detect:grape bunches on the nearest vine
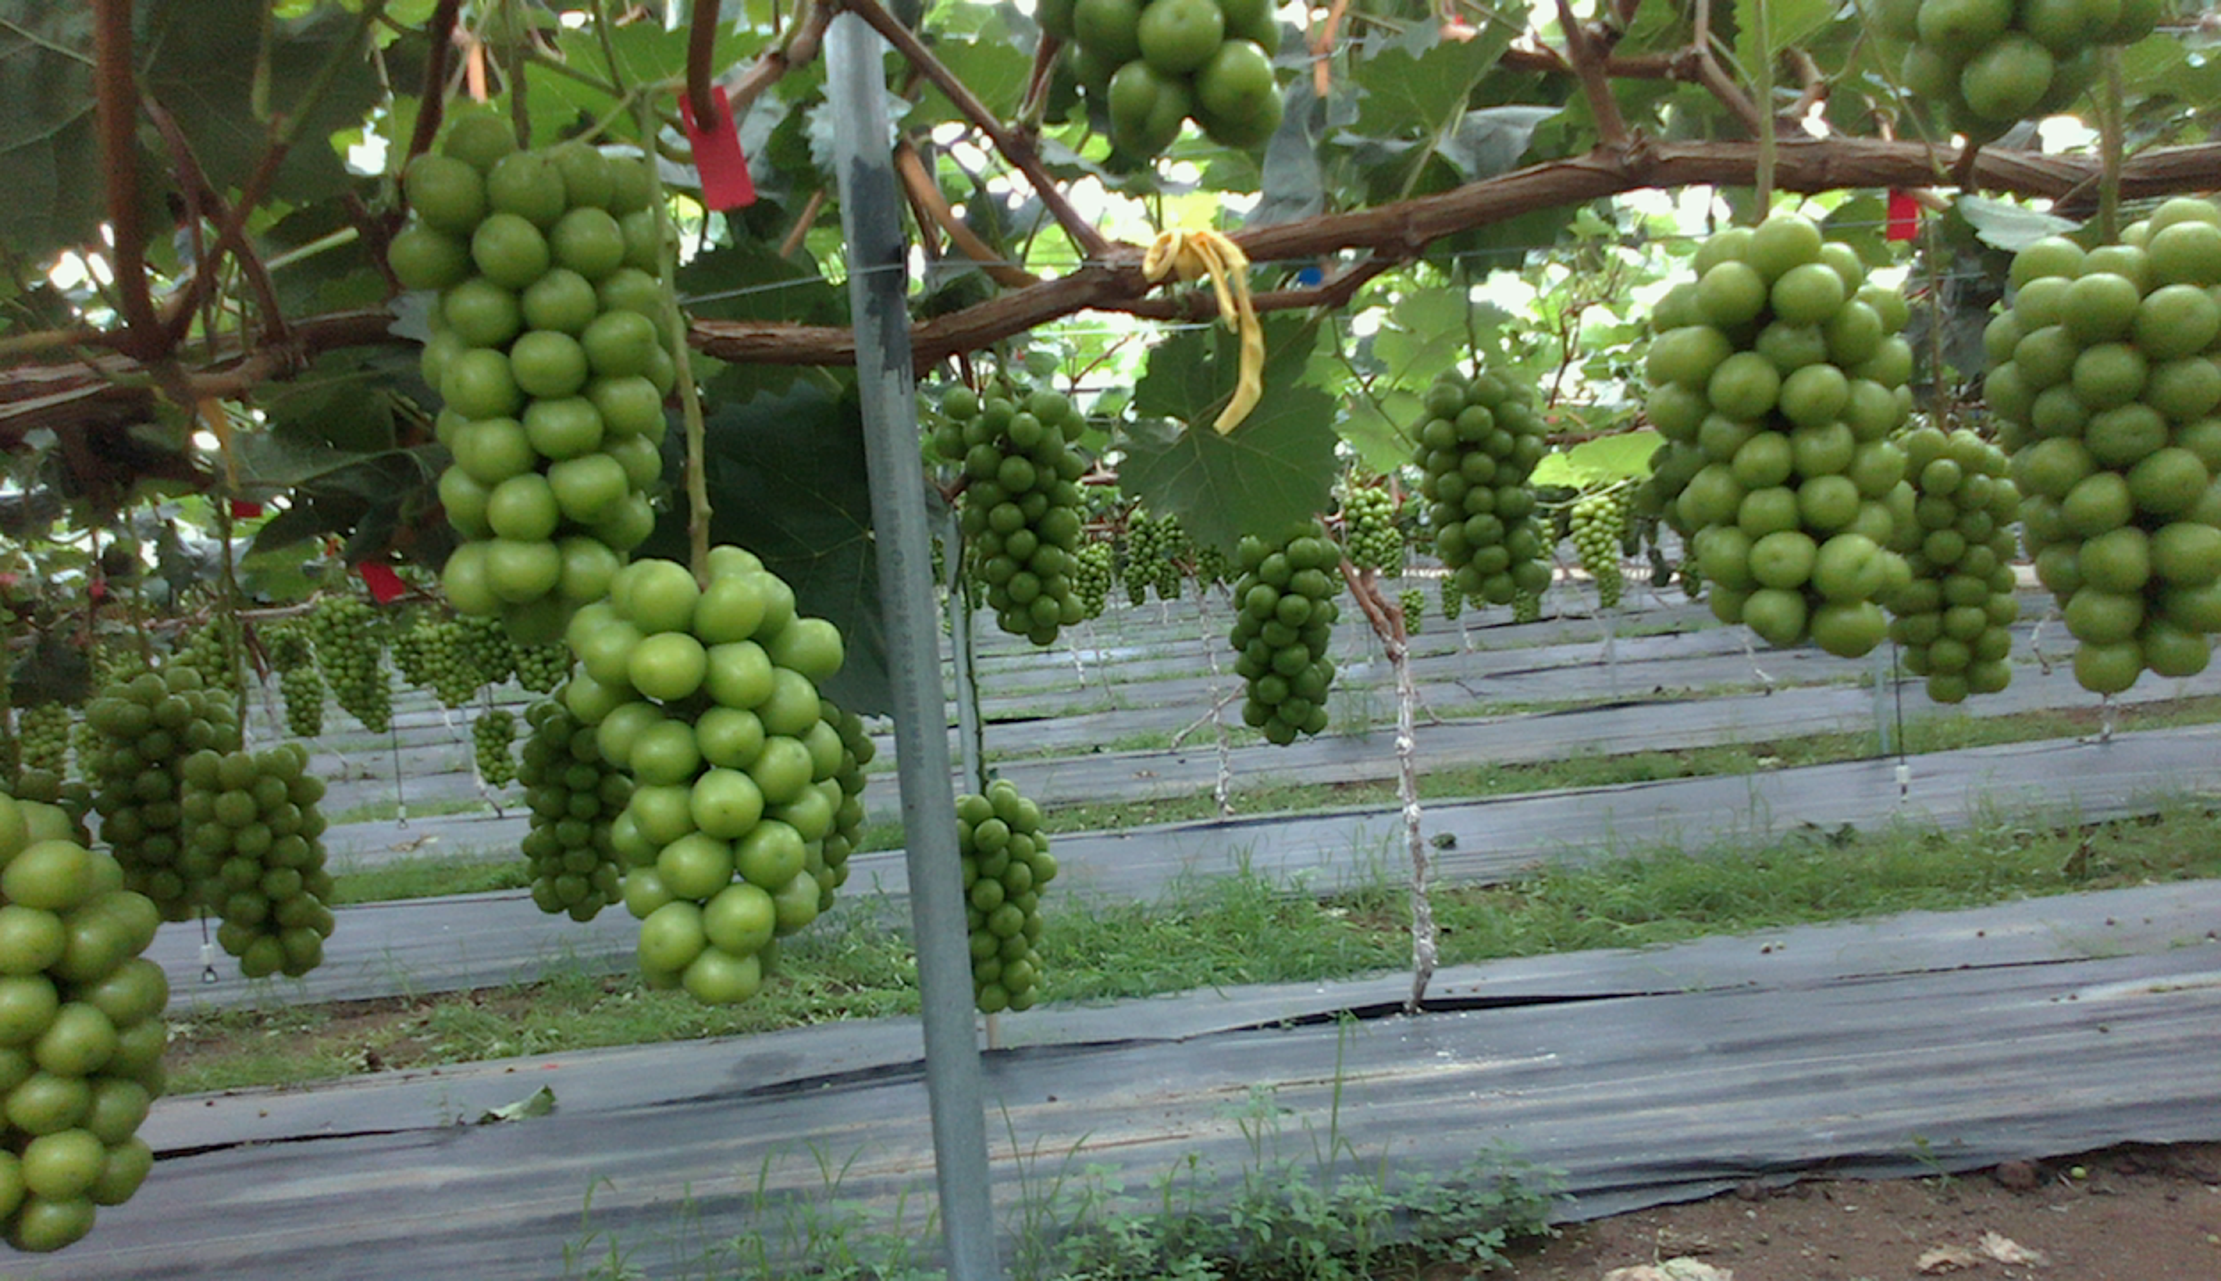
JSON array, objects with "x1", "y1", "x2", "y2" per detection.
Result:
[
  {"x1": 1641, "y1": 212, "x2": 1915, "y2": 660},
  {"x1": 0, "y1": 794, "x2": 169, "y2": 1249},
  {"x1": 564, "y1": 543, "x2": 847, "y2": 1007},
  {"x1": 381, "y1": 109, "x2": 673, "y2": 646},
  {"x1": 1983, "y1": 194, "x2": 2219, "y2": 692},
  {"x1": 1038, "y1": 2, "x2": 1283, "y2": 160}
]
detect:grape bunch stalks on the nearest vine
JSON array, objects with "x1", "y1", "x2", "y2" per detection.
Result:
[
  {"x1": 1751, "y1": 0, "x2": 1773, "y2": 224},
  {"x1": 642, "y1": 77, "x2": 708, "y2": 585},
  {"x1": 500, "y1": 2, "x2": 530, "y2": 148},
  {"x1": 2104, "y1": 59, "x2": 2121, "y2": 242}
]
